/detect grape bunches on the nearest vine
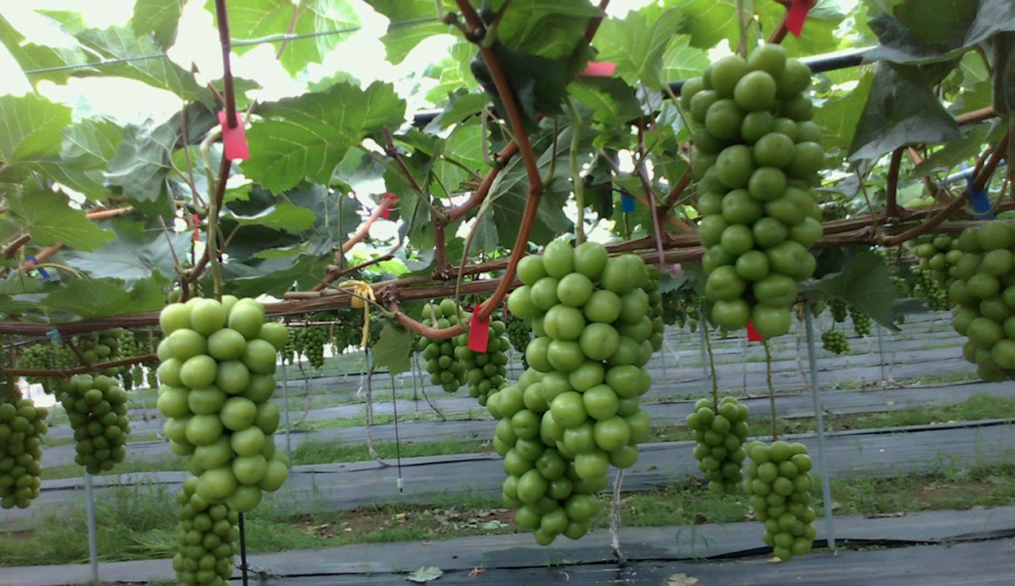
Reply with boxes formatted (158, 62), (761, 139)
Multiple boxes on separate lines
(507, 239), (654, 479)
(484, 367), (608, 547)
(155, 295), (292, 514)
(679, 43), (823, 339)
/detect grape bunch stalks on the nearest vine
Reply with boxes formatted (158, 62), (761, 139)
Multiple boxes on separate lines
(201, 132), (223, 301)
(737, 0), (747, 58)
(565, 98), (587, 244)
